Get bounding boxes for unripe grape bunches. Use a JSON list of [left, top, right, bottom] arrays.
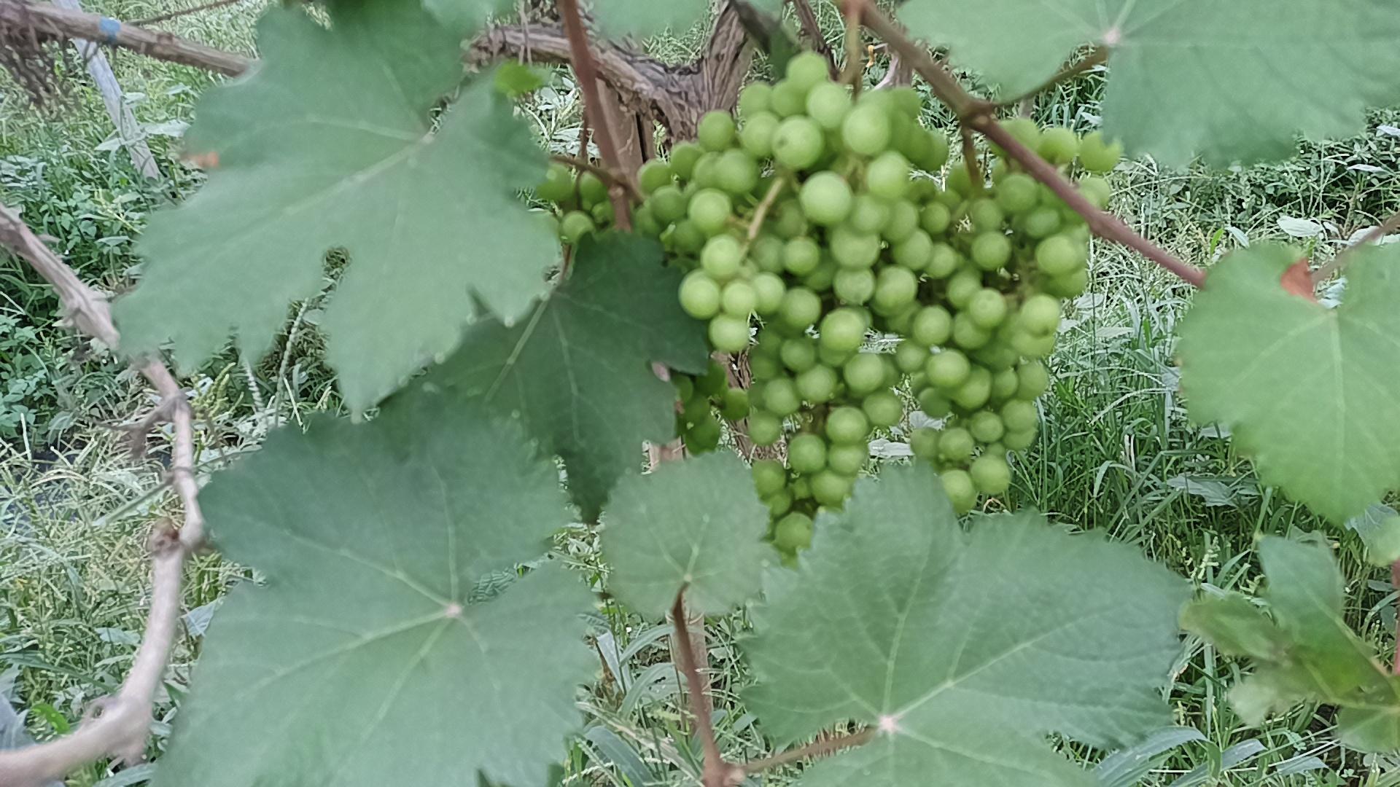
[[635, 52, 946, 351], [669, 358, 750, 456], [892, 117, 1120, 514], [747, 324, 902, 558], [534, 158, 613, 242]]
